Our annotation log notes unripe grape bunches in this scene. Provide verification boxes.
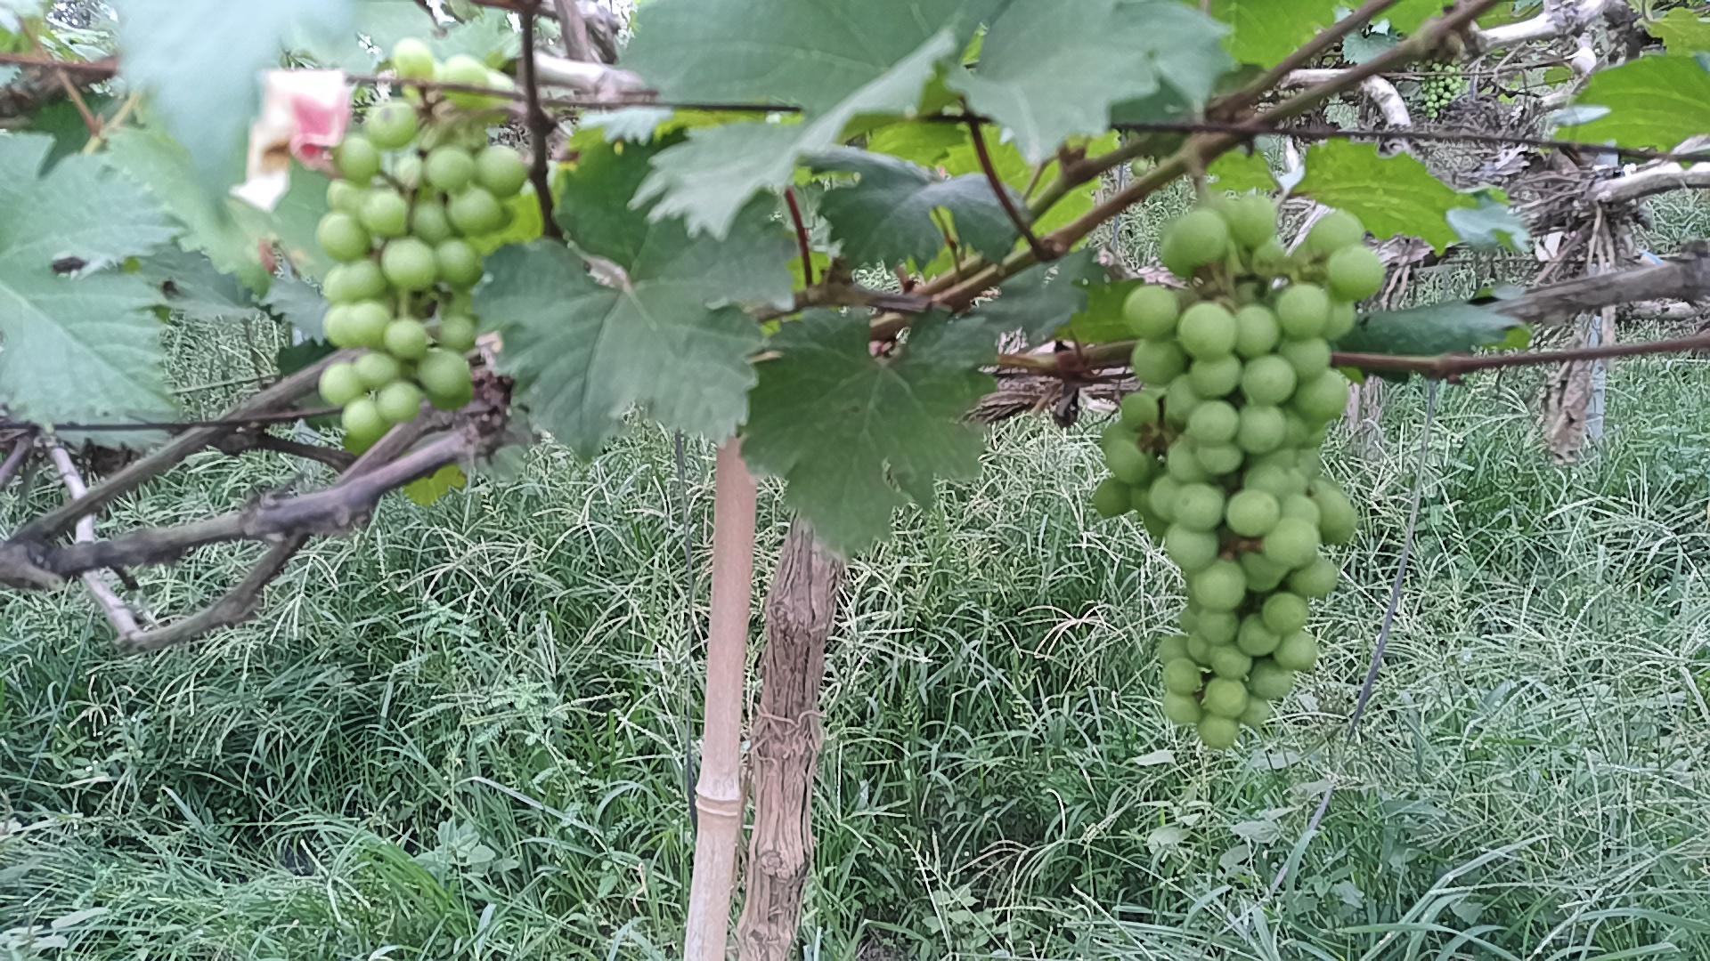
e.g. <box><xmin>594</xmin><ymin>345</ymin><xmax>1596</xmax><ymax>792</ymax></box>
<box><xmin>1092</xmin><ymin>193</ymin><xmax>1385</xmax><ymax>747</ymax></box>
<box><xmin>317</xmin><ymin>38</ymin><xmax>528</xmax><ymax>454</ymax></box>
